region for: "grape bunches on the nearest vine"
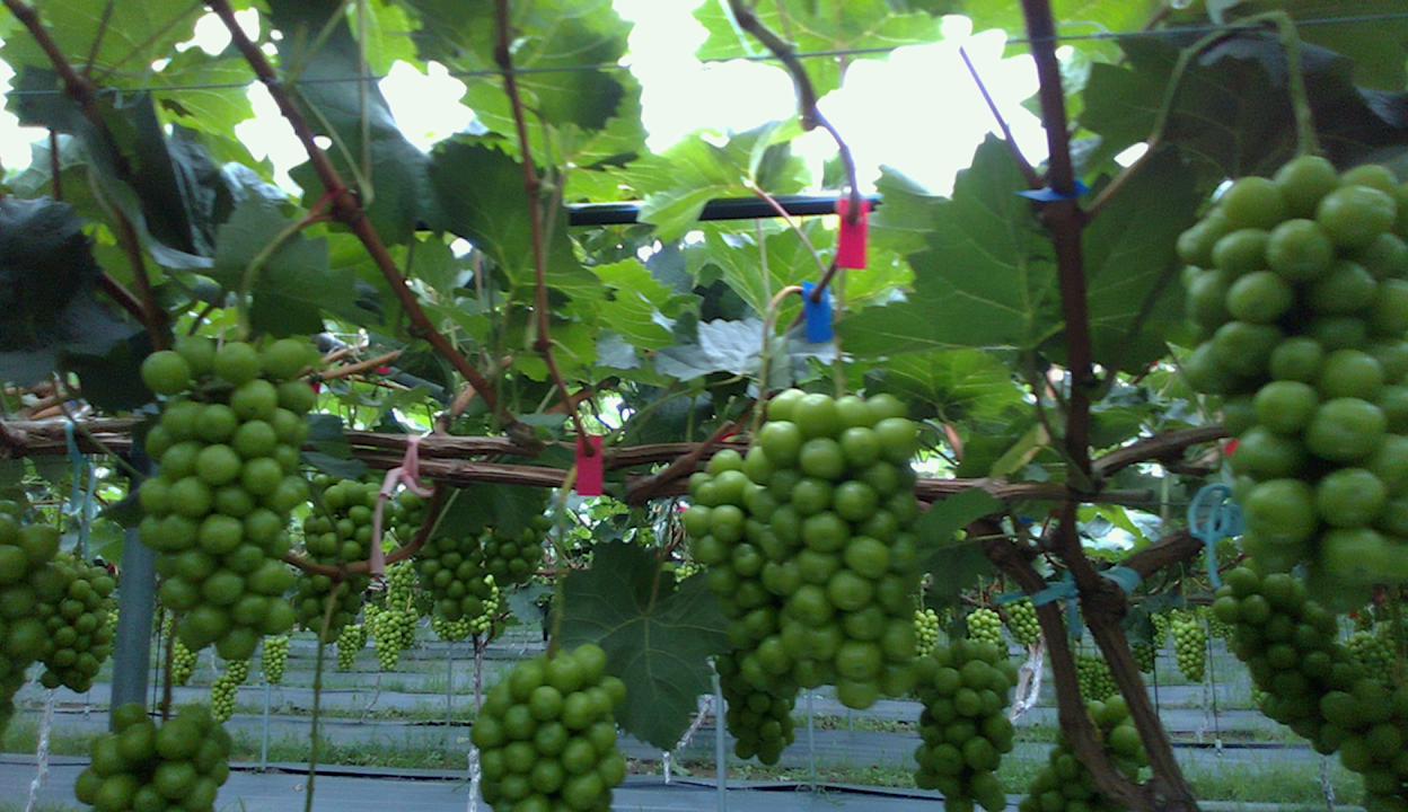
[468,644,627,811]
[139,335,317,663]
[1177,156,1407,612]
[757,388,924,709]
[683,445,825,700]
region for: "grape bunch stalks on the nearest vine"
[237,211,328,342]
[748,284,802,448]
[1251,9,1317,156]
[548,466,578,660]
[831,268,847,398]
